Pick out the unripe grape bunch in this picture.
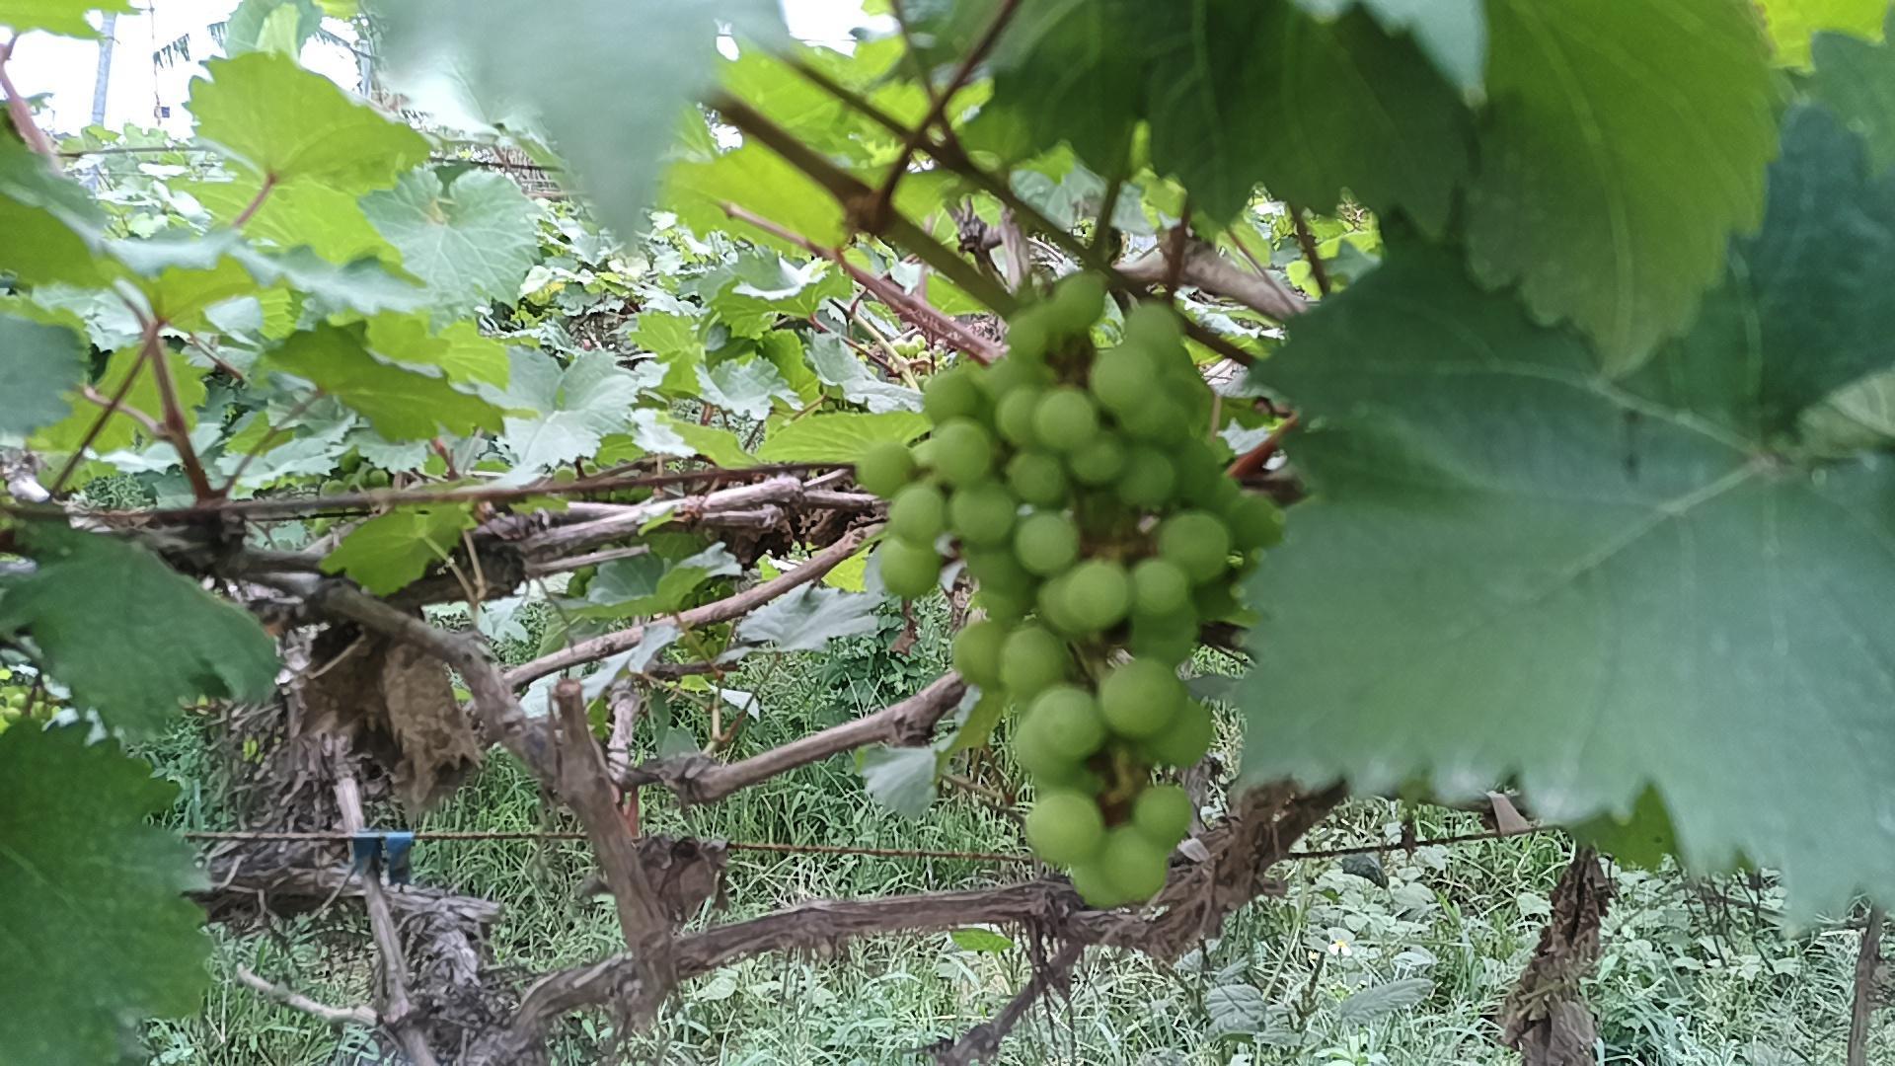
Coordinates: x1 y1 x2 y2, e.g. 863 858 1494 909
861 270 1288 909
